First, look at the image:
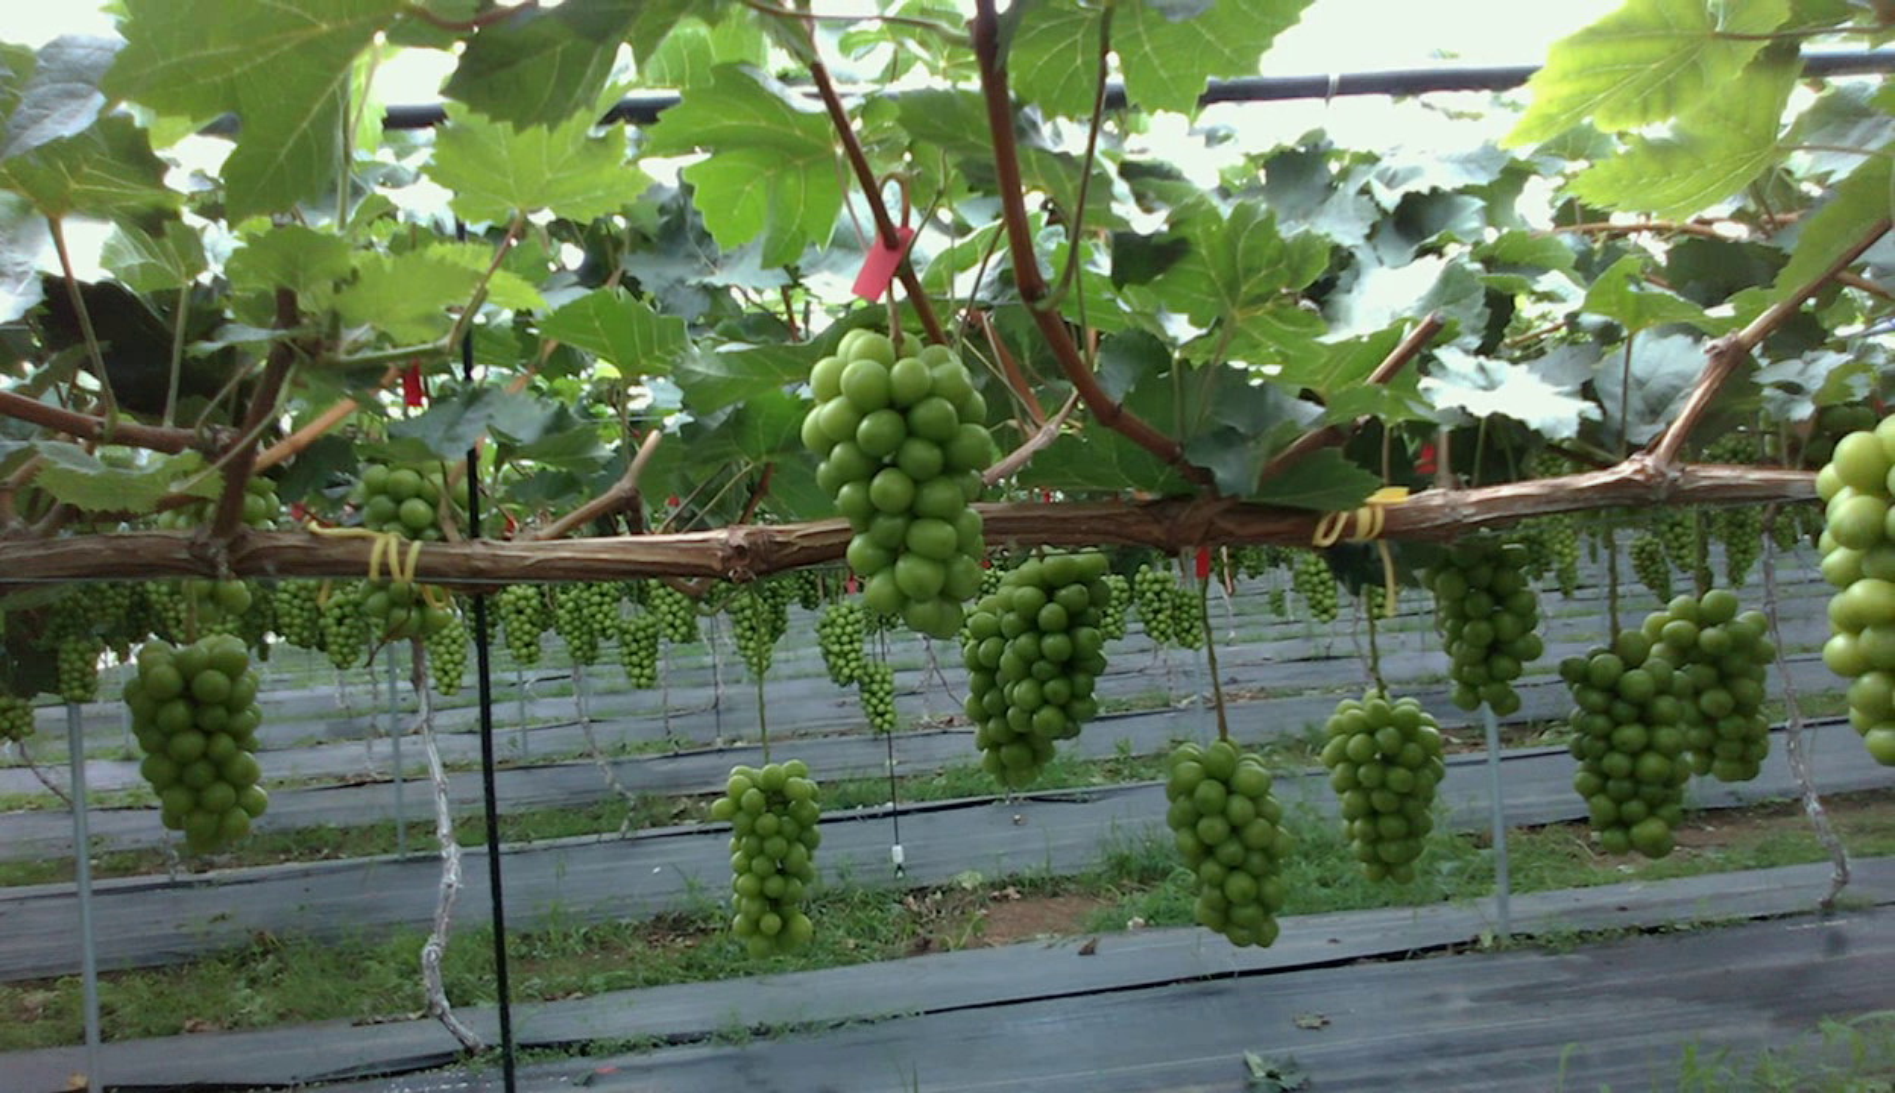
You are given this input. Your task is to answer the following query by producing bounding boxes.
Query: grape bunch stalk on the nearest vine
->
[885,282,902,357]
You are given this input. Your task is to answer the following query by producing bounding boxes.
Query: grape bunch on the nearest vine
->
[800,328,993,644]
